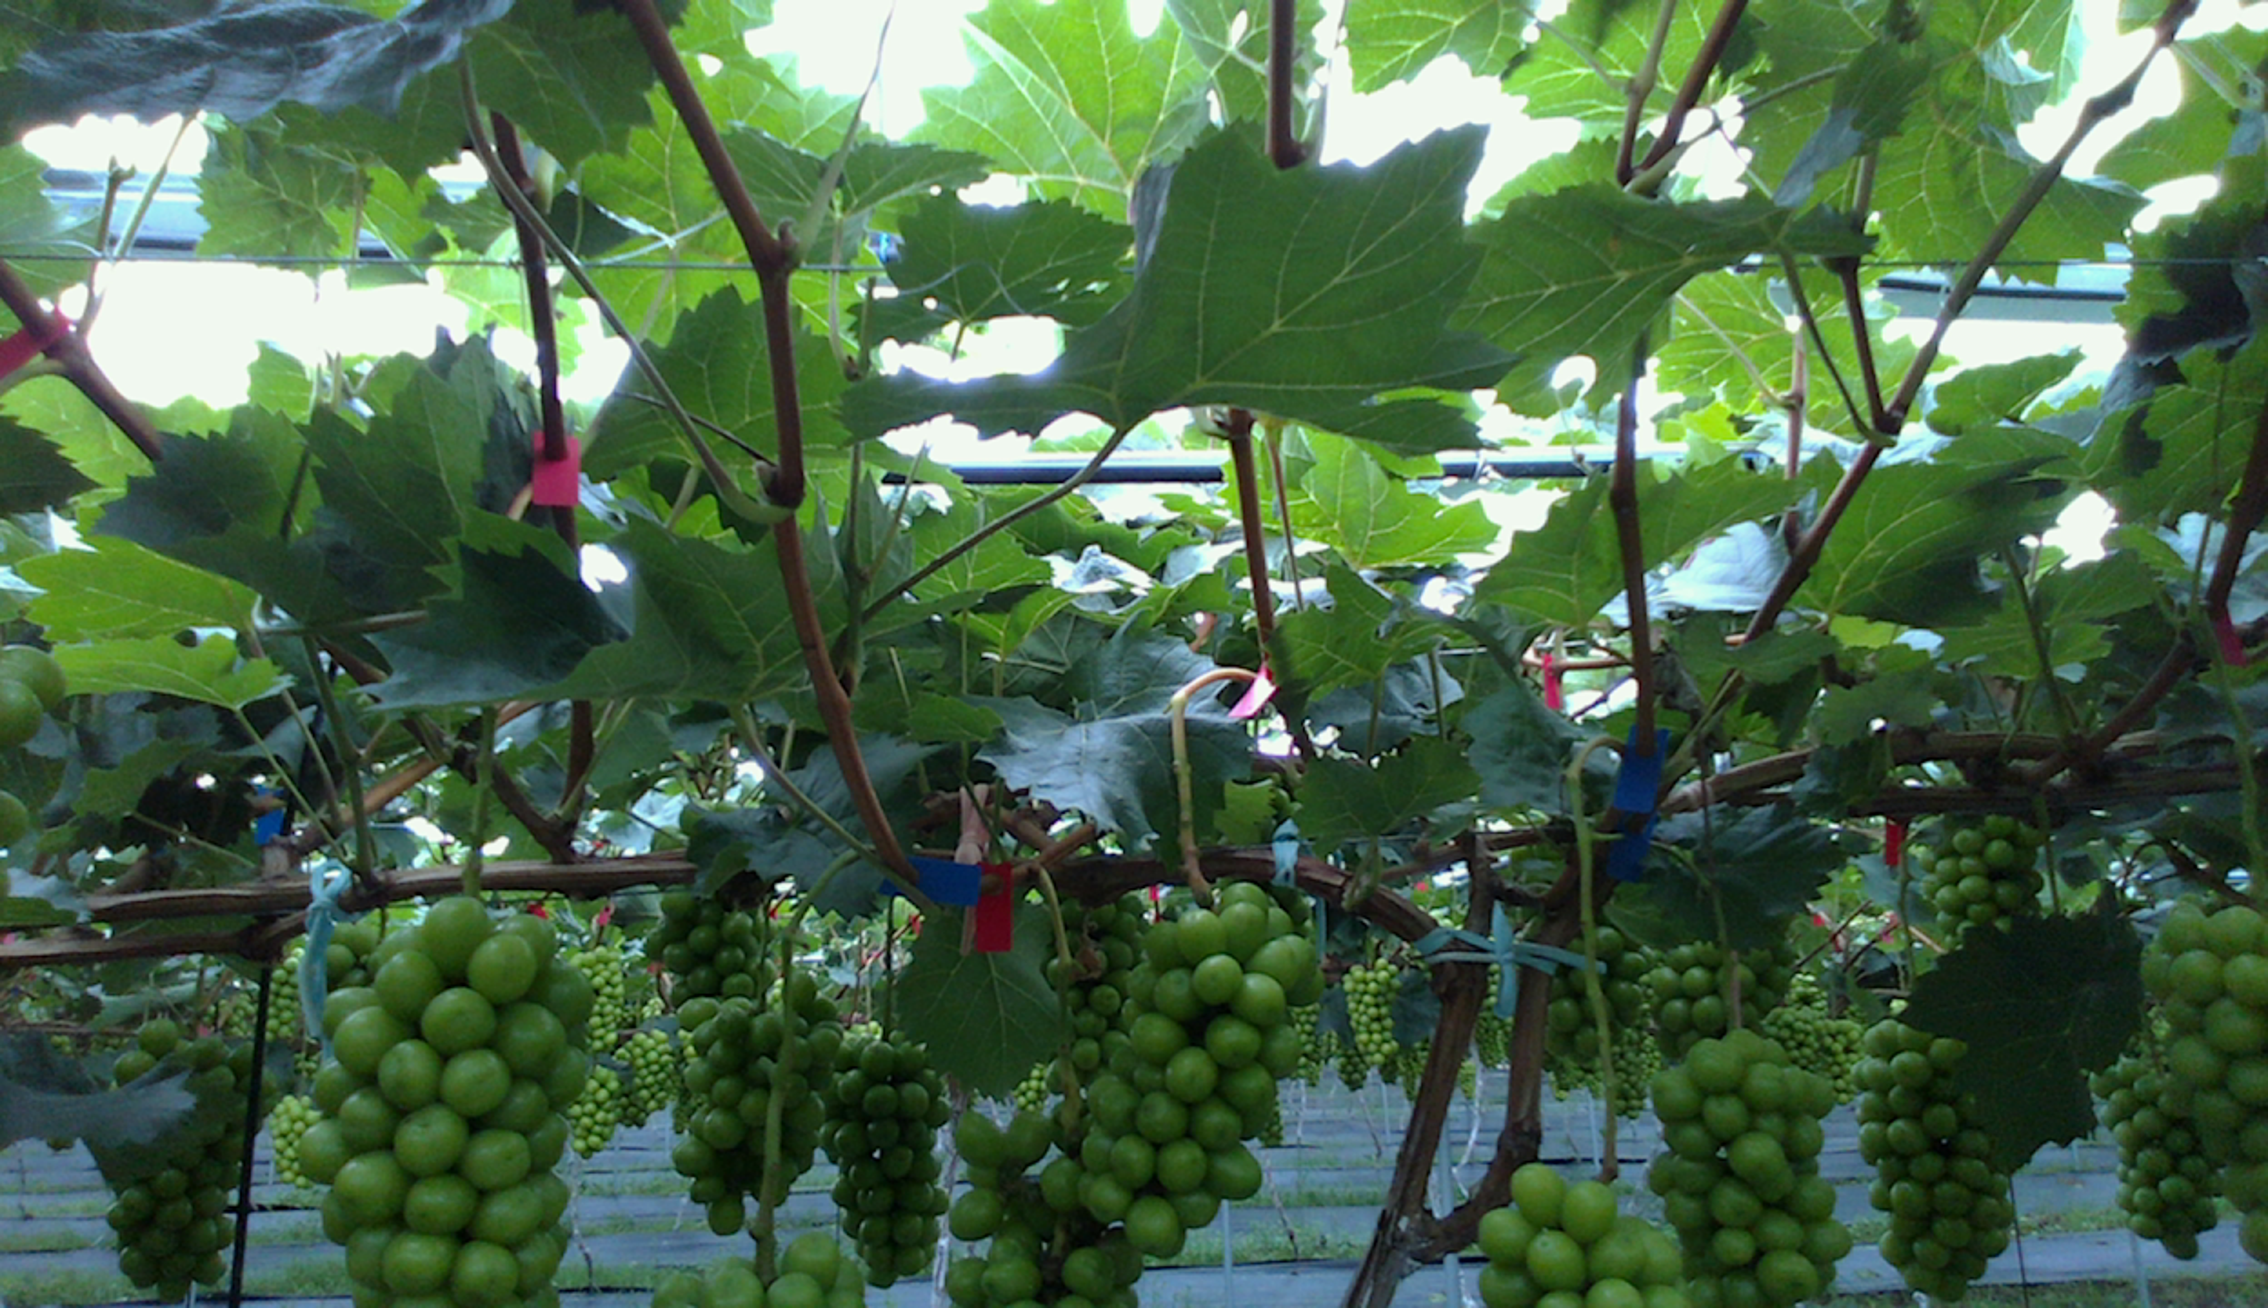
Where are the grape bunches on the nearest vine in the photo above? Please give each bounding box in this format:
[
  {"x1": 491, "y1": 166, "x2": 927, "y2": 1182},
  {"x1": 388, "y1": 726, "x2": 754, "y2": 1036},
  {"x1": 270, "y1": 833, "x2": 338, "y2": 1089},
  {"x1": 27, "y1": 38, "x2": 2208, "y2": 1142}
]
[
  {"x1": 2141, "y1": 899, "x2": 2266, "y2": 1264},
  {"x1": 300, "y1": 896, "x2": 592, "y2": 1306},
  {"x1": 1646, "y1": 1028, "x2": 1852, "y2": 1306},
  {"x1": 947, "y1": 1112, "x2": 1143, "y2": 1306},
  {"x1": 1477, "y1": 1159, "x2": 1694, "y2": 1306},
  {"x1": 649, "y1": 1235, "x2": 867, "y2": 1306},
  {"x1": 1079, "y1": 883, "x2": 1325, "y2": 1261}
]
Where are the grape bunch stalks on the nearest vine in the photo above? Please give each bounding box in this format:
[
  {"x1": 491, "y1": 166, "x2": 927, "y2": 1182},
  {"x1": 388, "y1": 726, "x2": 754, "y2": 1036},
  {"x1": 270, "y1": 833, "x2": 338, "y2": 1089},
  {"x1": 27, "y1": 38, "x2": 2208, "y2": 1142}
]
[
  {"x1": 1650, "y1": 841, "x2": 1741, "y2": 1026},
  {"x1": 465, "y1": 480, "x2": 532, "y2": 892},
  {"x1": 1169, "y1": 667, "x2": 1256, "y2": 905},
  {"x1": 1567, "y1": 734, "x2": 1621, "y2": 1181},
  {"x1": 751, "y1": 850, "x2": 860, "y2": 1273},
  {"x1": 1039, "y1": 868, "x2": 1083, "y2": 1148},
  {"x1": 2195, "y1": 619, "x2": 2266, "y2": 899}
]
